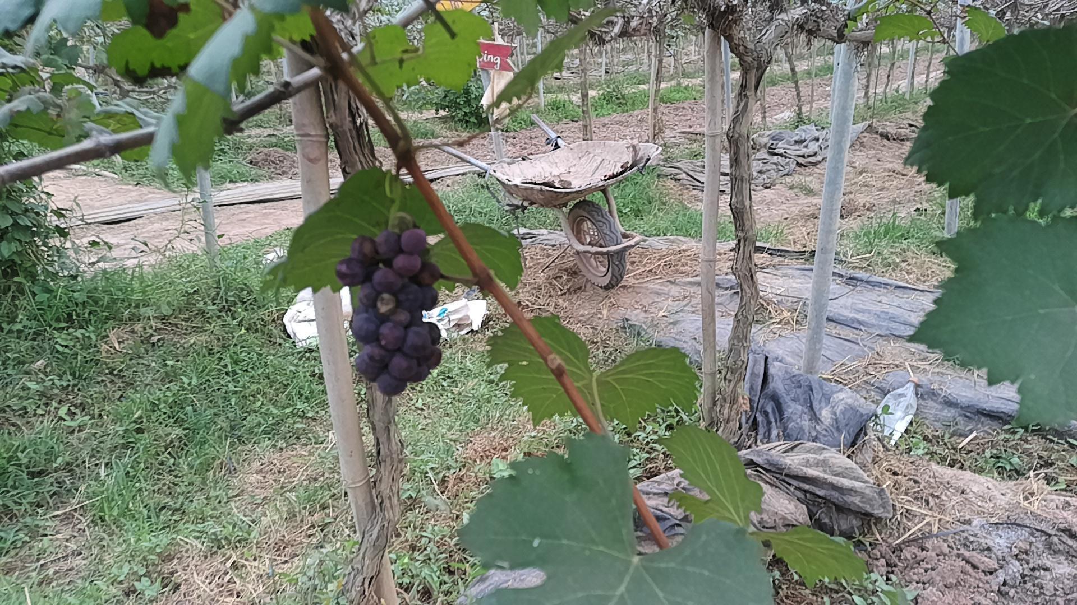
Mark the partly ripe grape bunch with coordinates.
[335,213,447,396]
